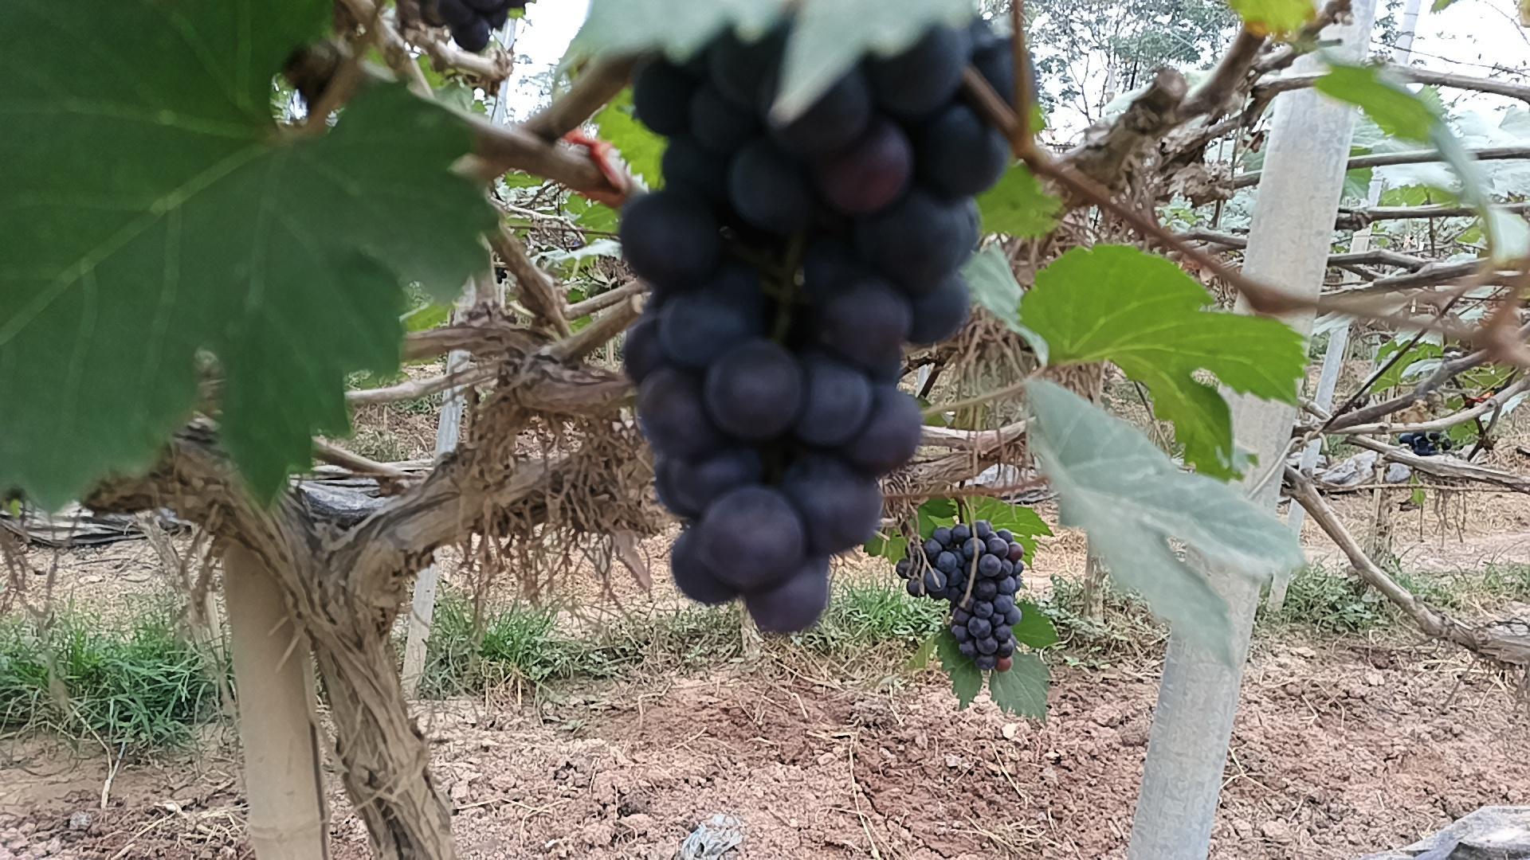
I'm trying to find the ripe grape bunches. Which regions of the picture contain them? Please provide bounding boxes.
[896,521,1024,672]
[621,20,1010,632]
[410,0,533,53]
